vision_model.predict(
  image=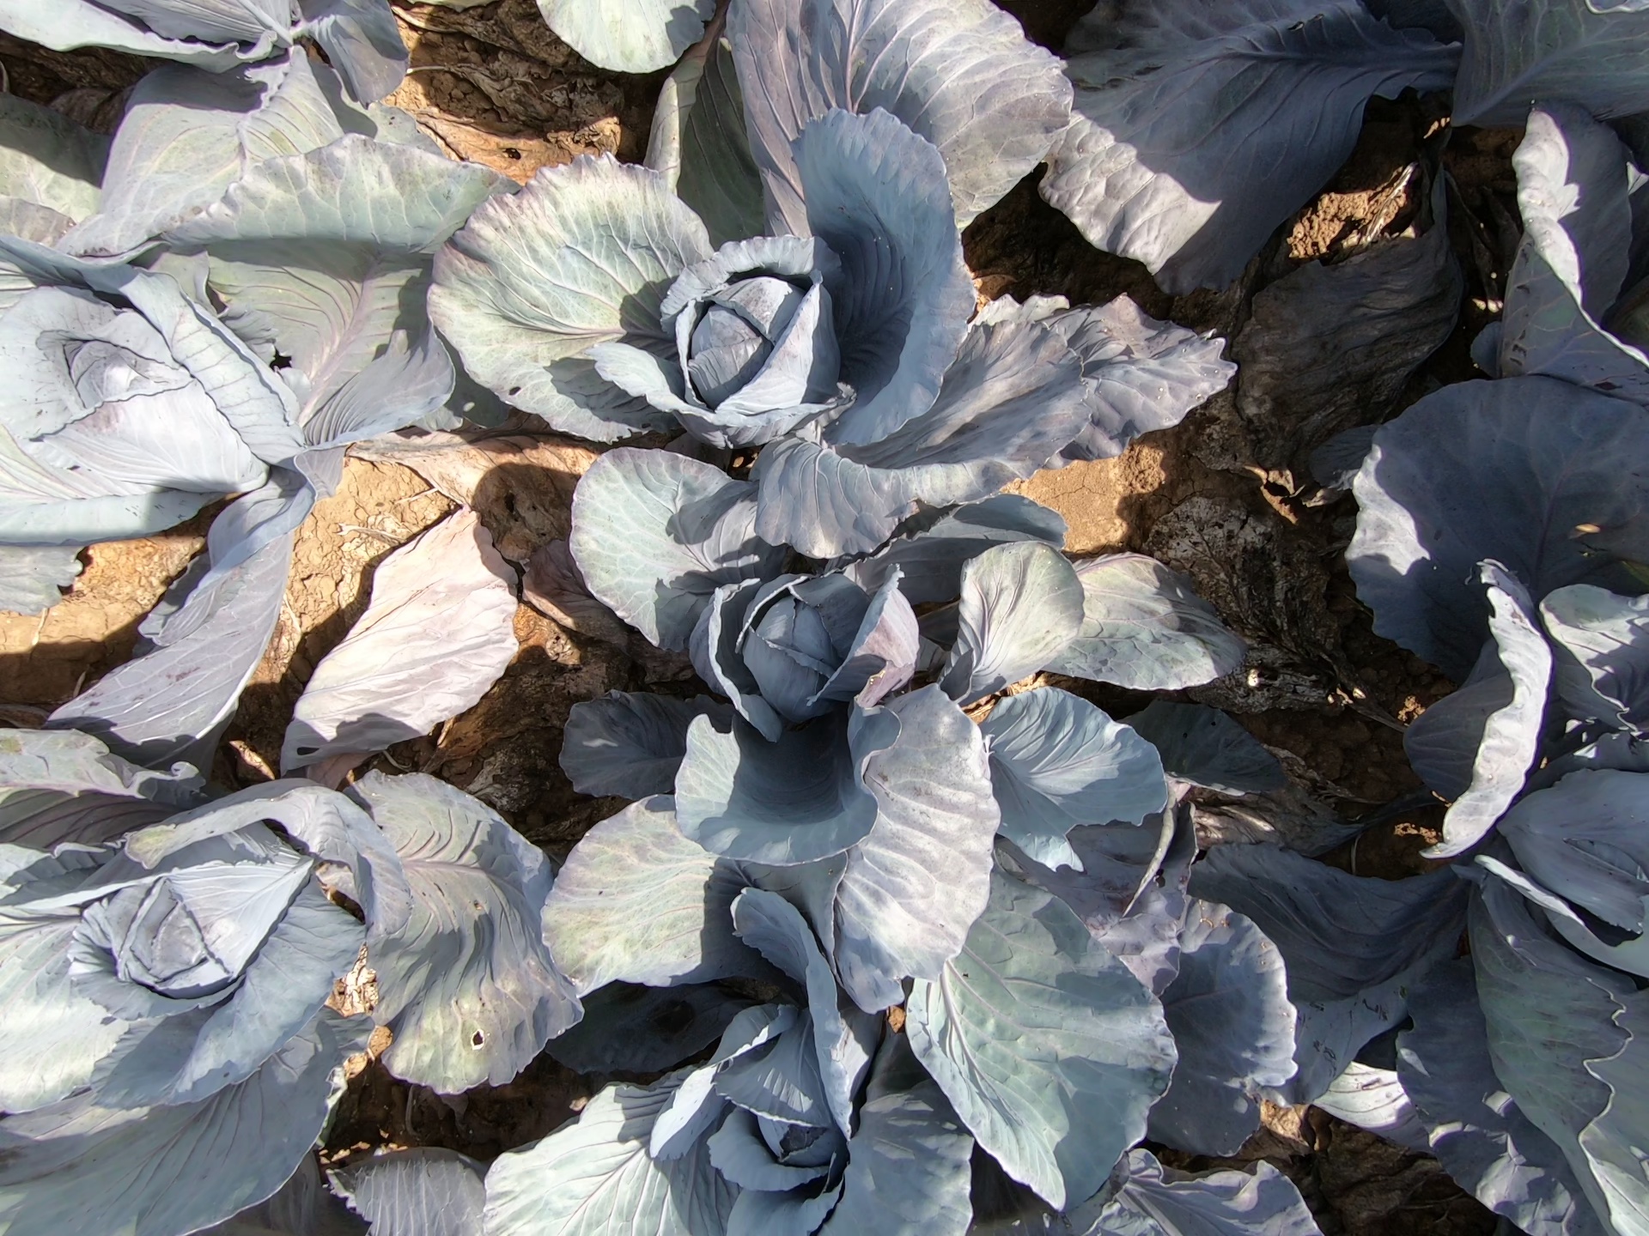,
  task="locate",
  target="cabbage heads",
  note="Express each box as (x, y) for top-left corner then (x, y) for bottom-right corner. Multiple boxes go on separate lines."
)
(113, 856), (265, 1003)
(747, 600), (855, 719)
(65, 306), (271, 482)
(692, 282), (840, 433)
(758, 1056), (849, 1162)
(1557, 784), (1647, 919)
